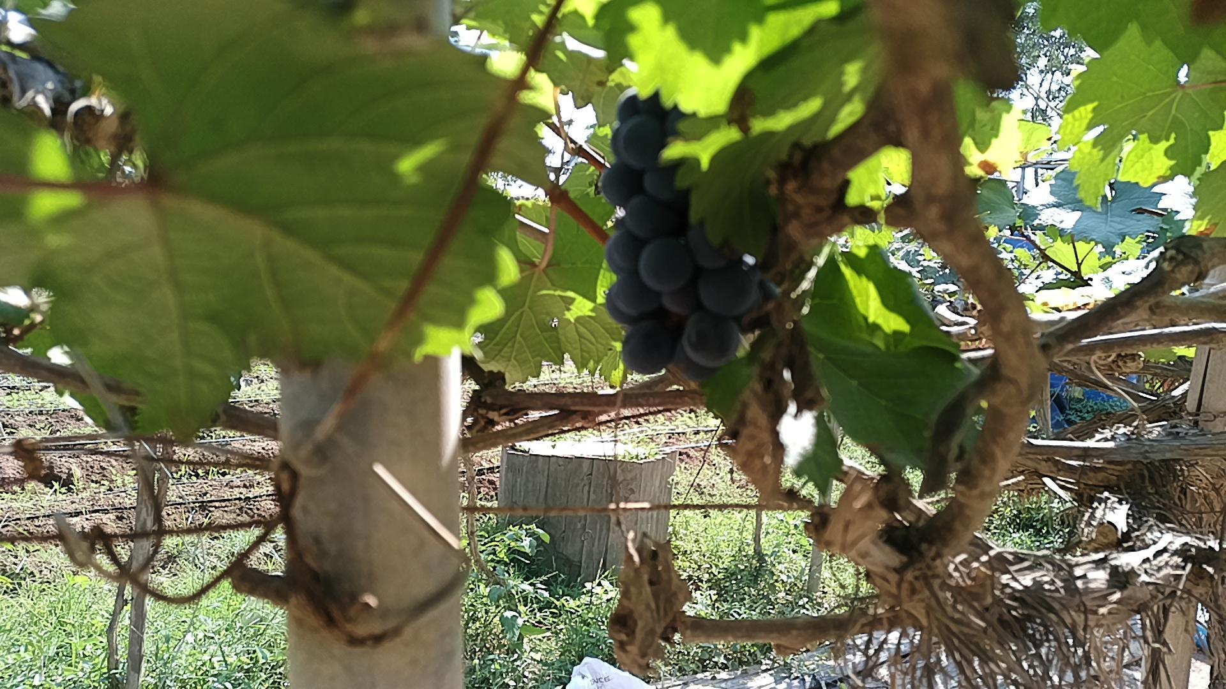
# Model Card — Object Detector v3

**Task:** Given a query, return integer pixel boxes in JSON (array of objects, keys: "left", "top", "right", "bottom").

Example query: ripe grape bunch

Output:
[{"left": 600, "top": 88, "right": 778, "bottom": 382}]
